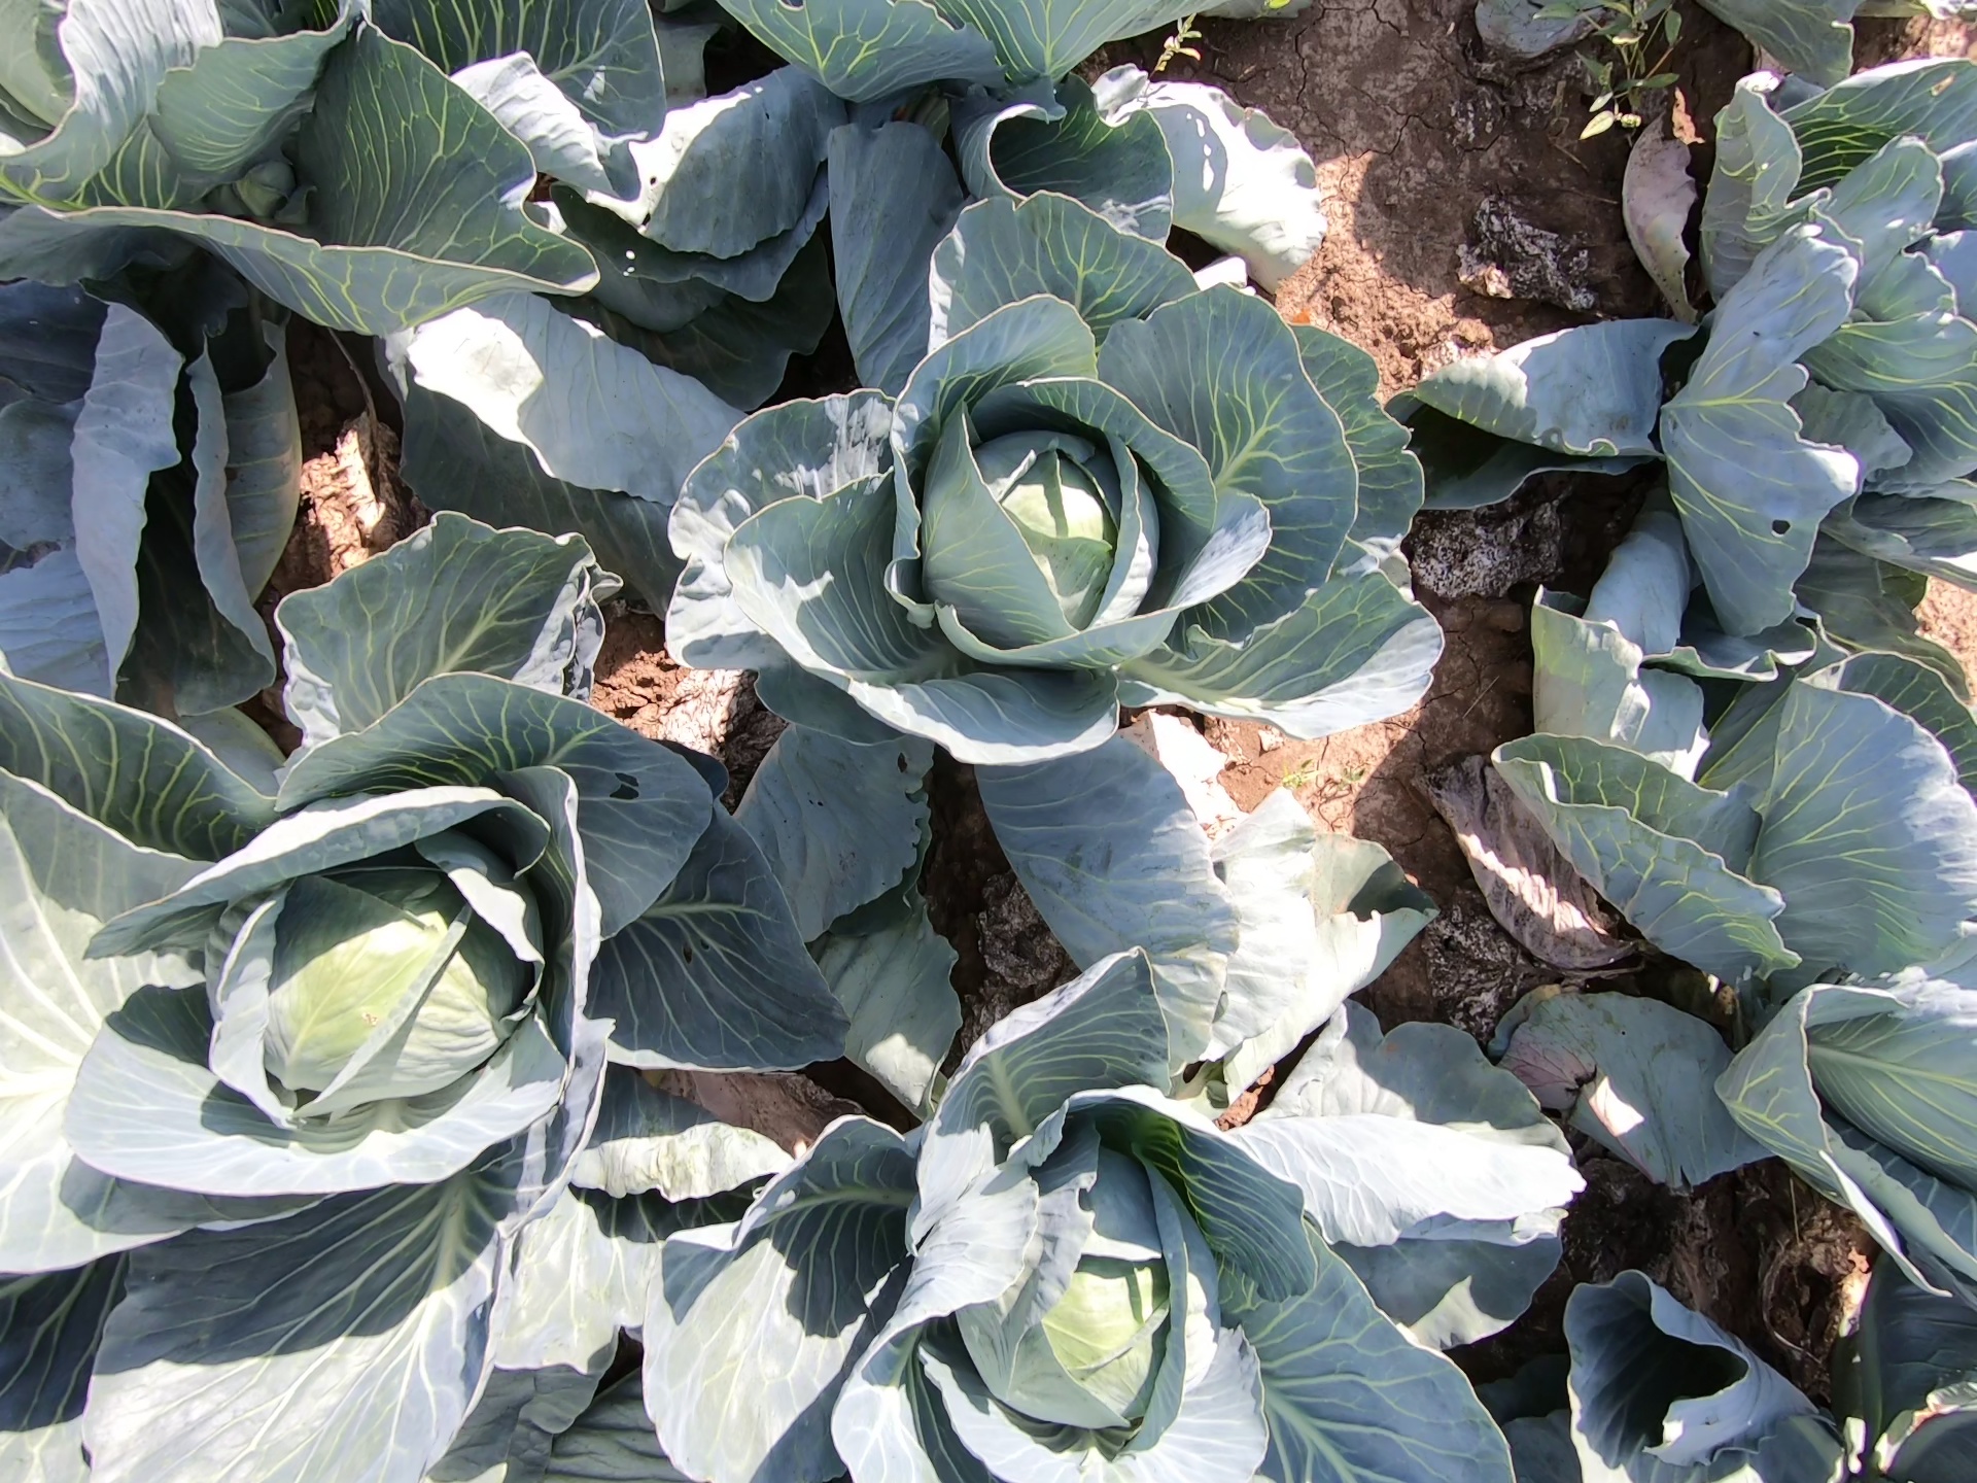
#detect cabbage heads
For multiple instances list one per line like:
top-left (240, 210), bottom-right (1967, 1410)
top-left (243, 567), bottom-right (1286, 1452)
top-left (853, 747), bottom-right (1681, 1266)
top-left (969, 1151), bottom-right (1210, 1421)
top-left (2, 2), bottom-right (254, 156)
top-left (233, 833), bottom-right (527, 1097)
top-left (927, 428), bottom-right (1151, 648)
